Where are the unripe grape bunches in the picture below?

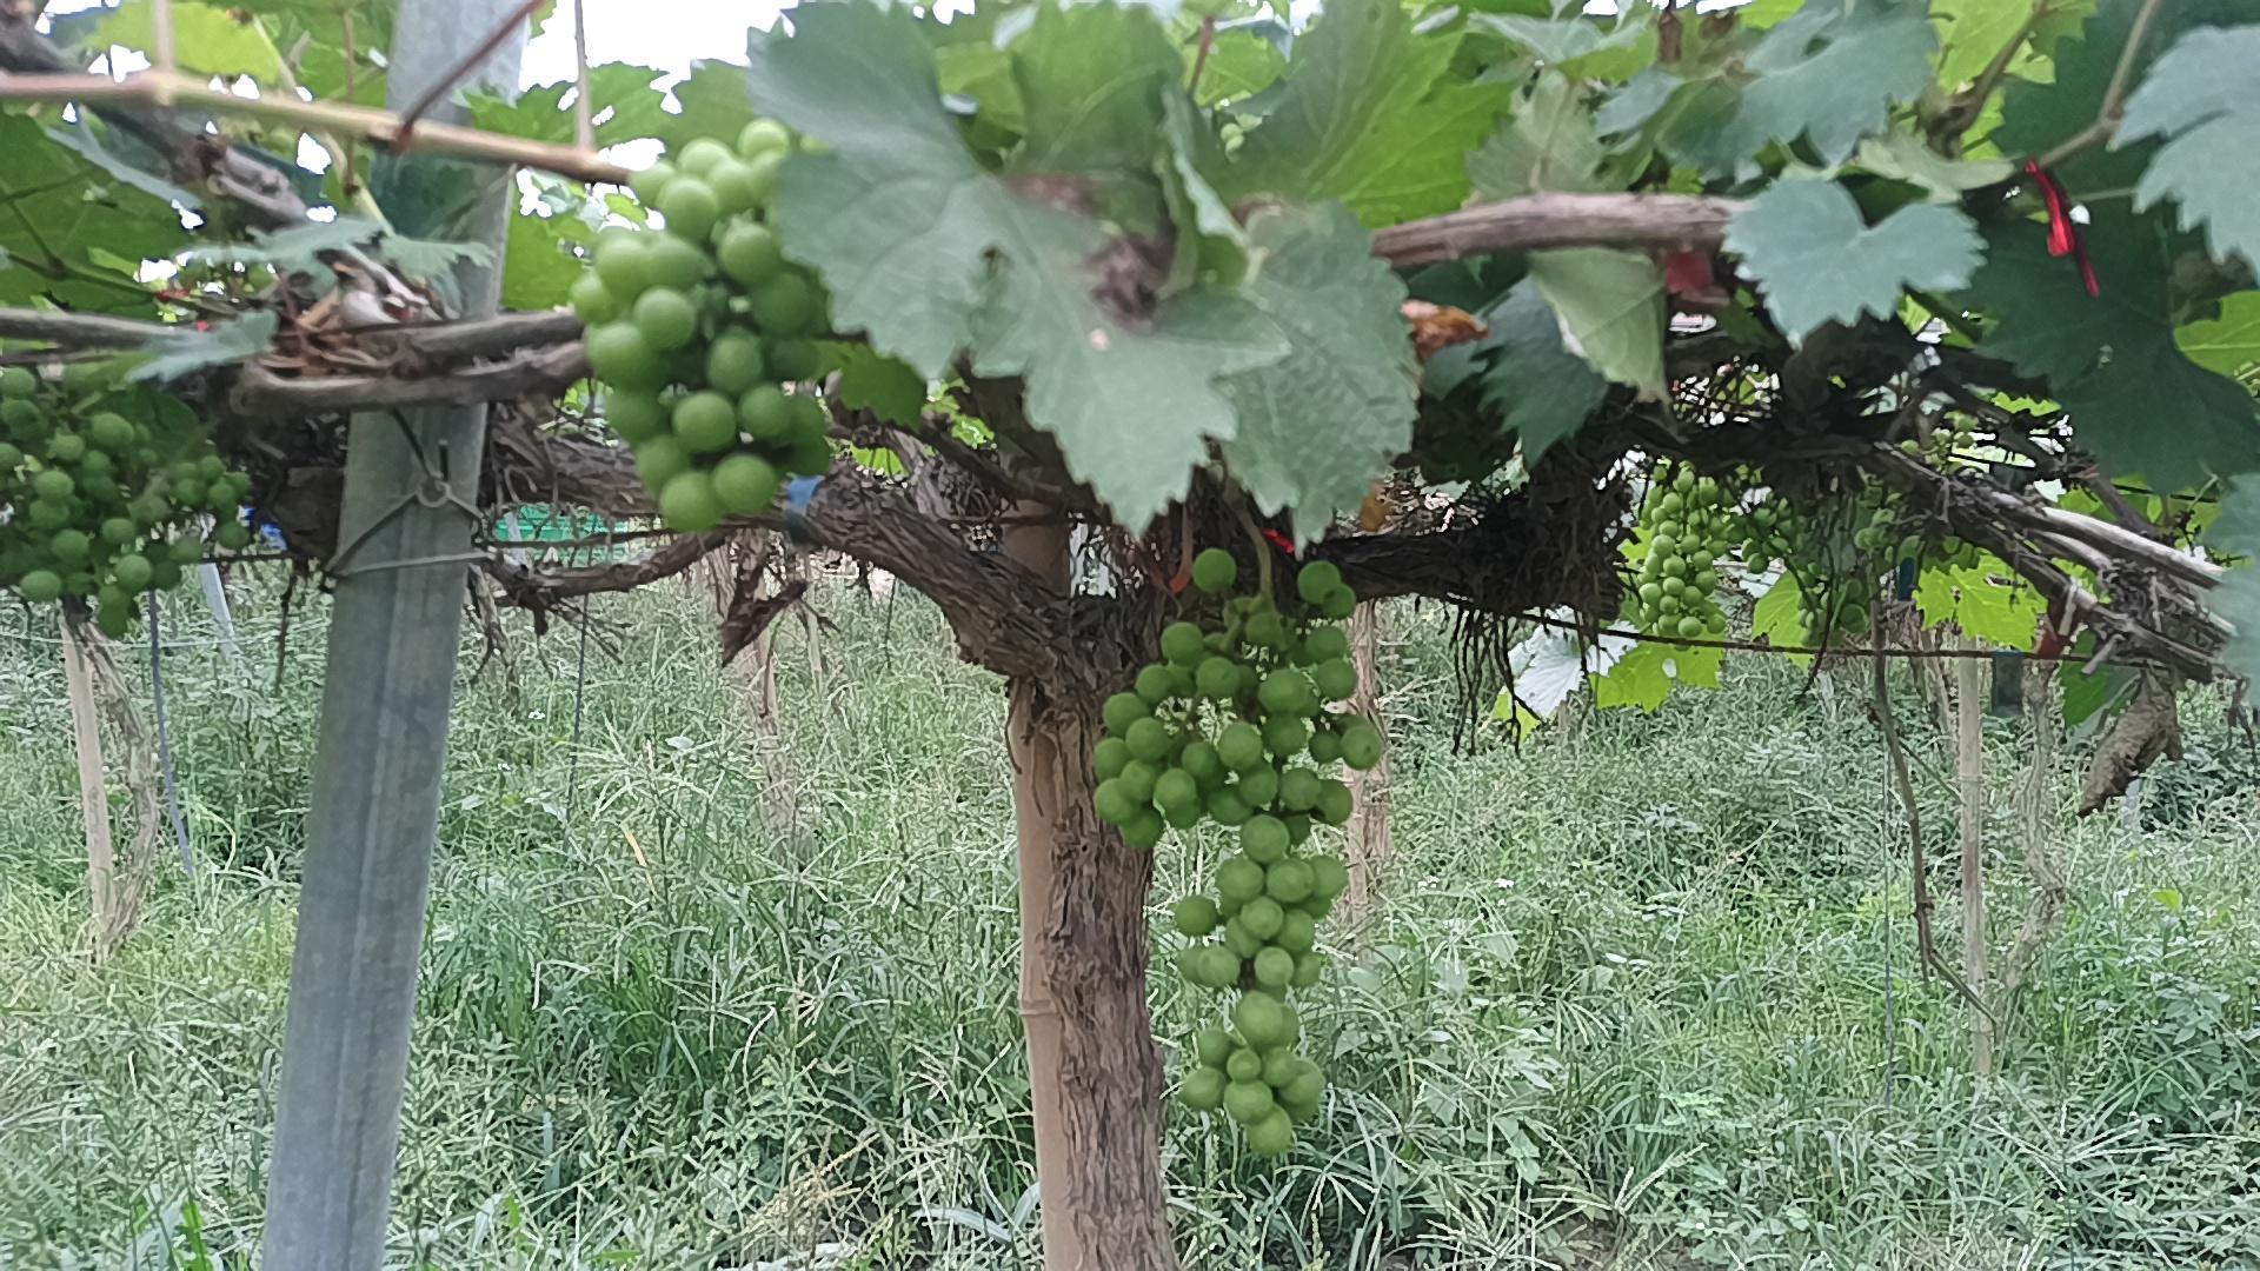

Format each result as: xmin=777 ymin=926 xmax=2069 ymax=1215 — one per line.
xmin=571 ymin=121 xmax=840 ymax=528
xmin=1730 ymin=495 xmax=1921 ymax=665
xmin=0 ymin=352 xmax=252 ymax=637
xmin=1638 ymin=471 xmax=1724 ymax=637
xmin=1095 ymin=551 xmax=1384 ymax=1151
